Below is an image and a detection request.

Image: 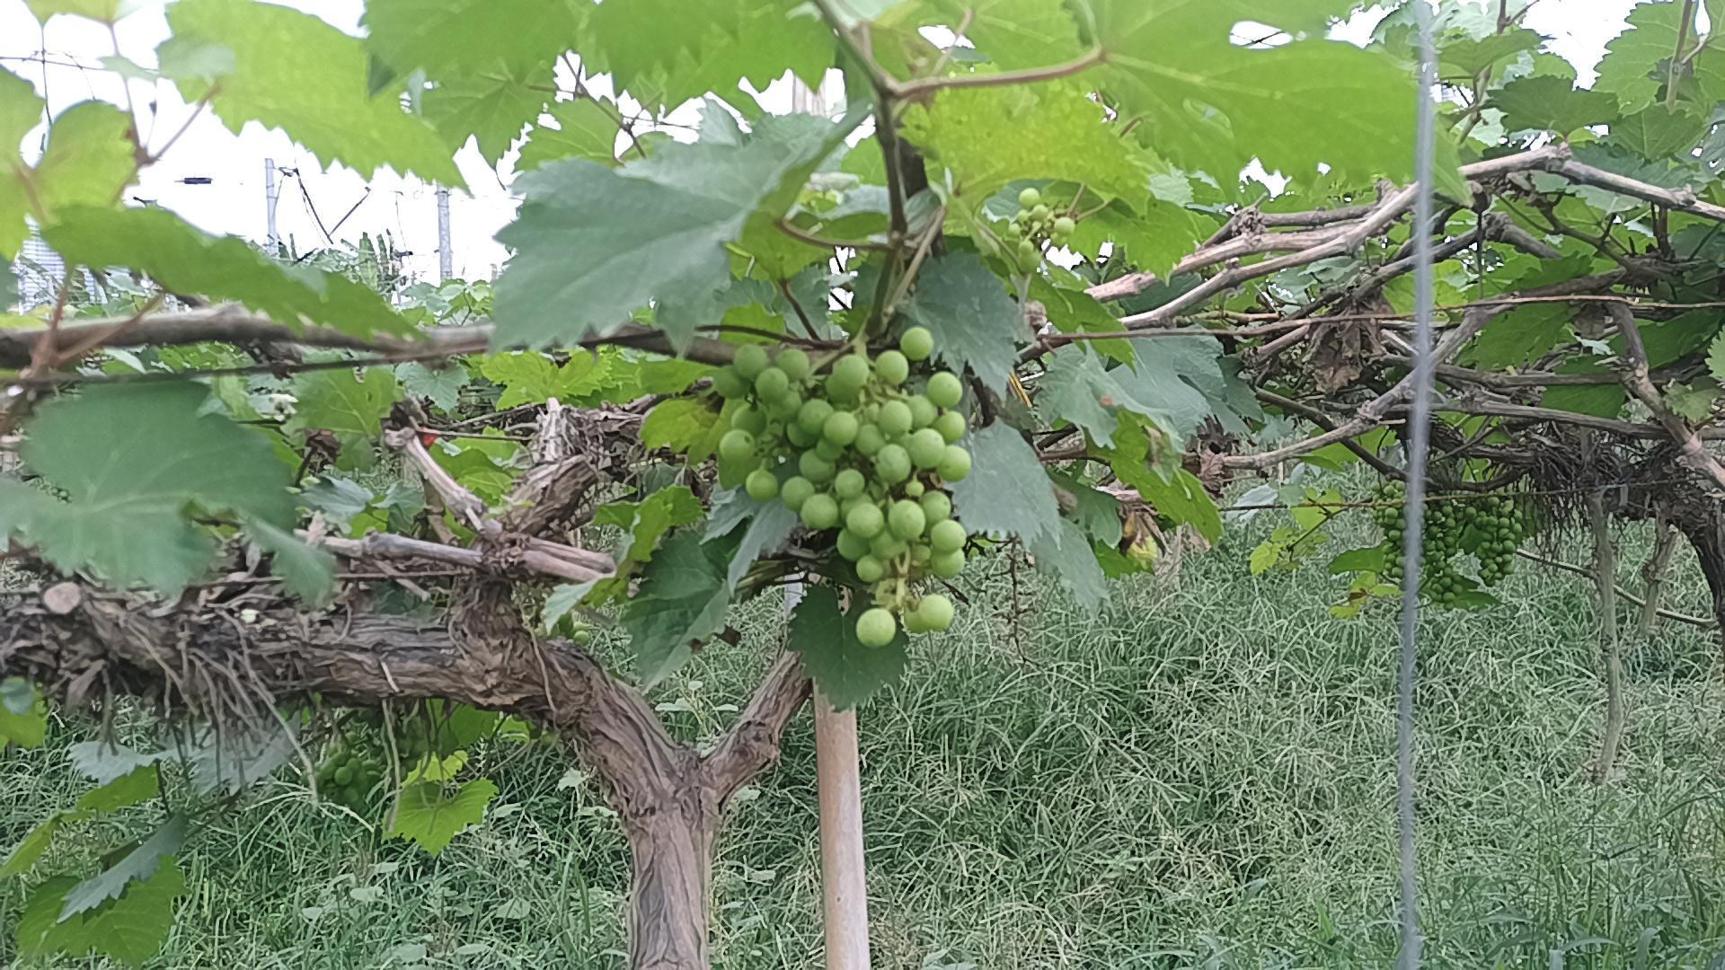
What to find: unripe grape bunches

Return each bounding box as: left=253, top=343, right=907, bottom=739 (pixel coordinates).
left=717, top=327, right=972, bottom=648
left=317, top=705, right=431, bottom=823
left=1464, top=496, right=1525, bottom=586
left=1420, top=498, right=1472, bottom=608
left=988, top=181, right=1076, bottom=271
left=1372, top=481, right=1404, bottom=587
